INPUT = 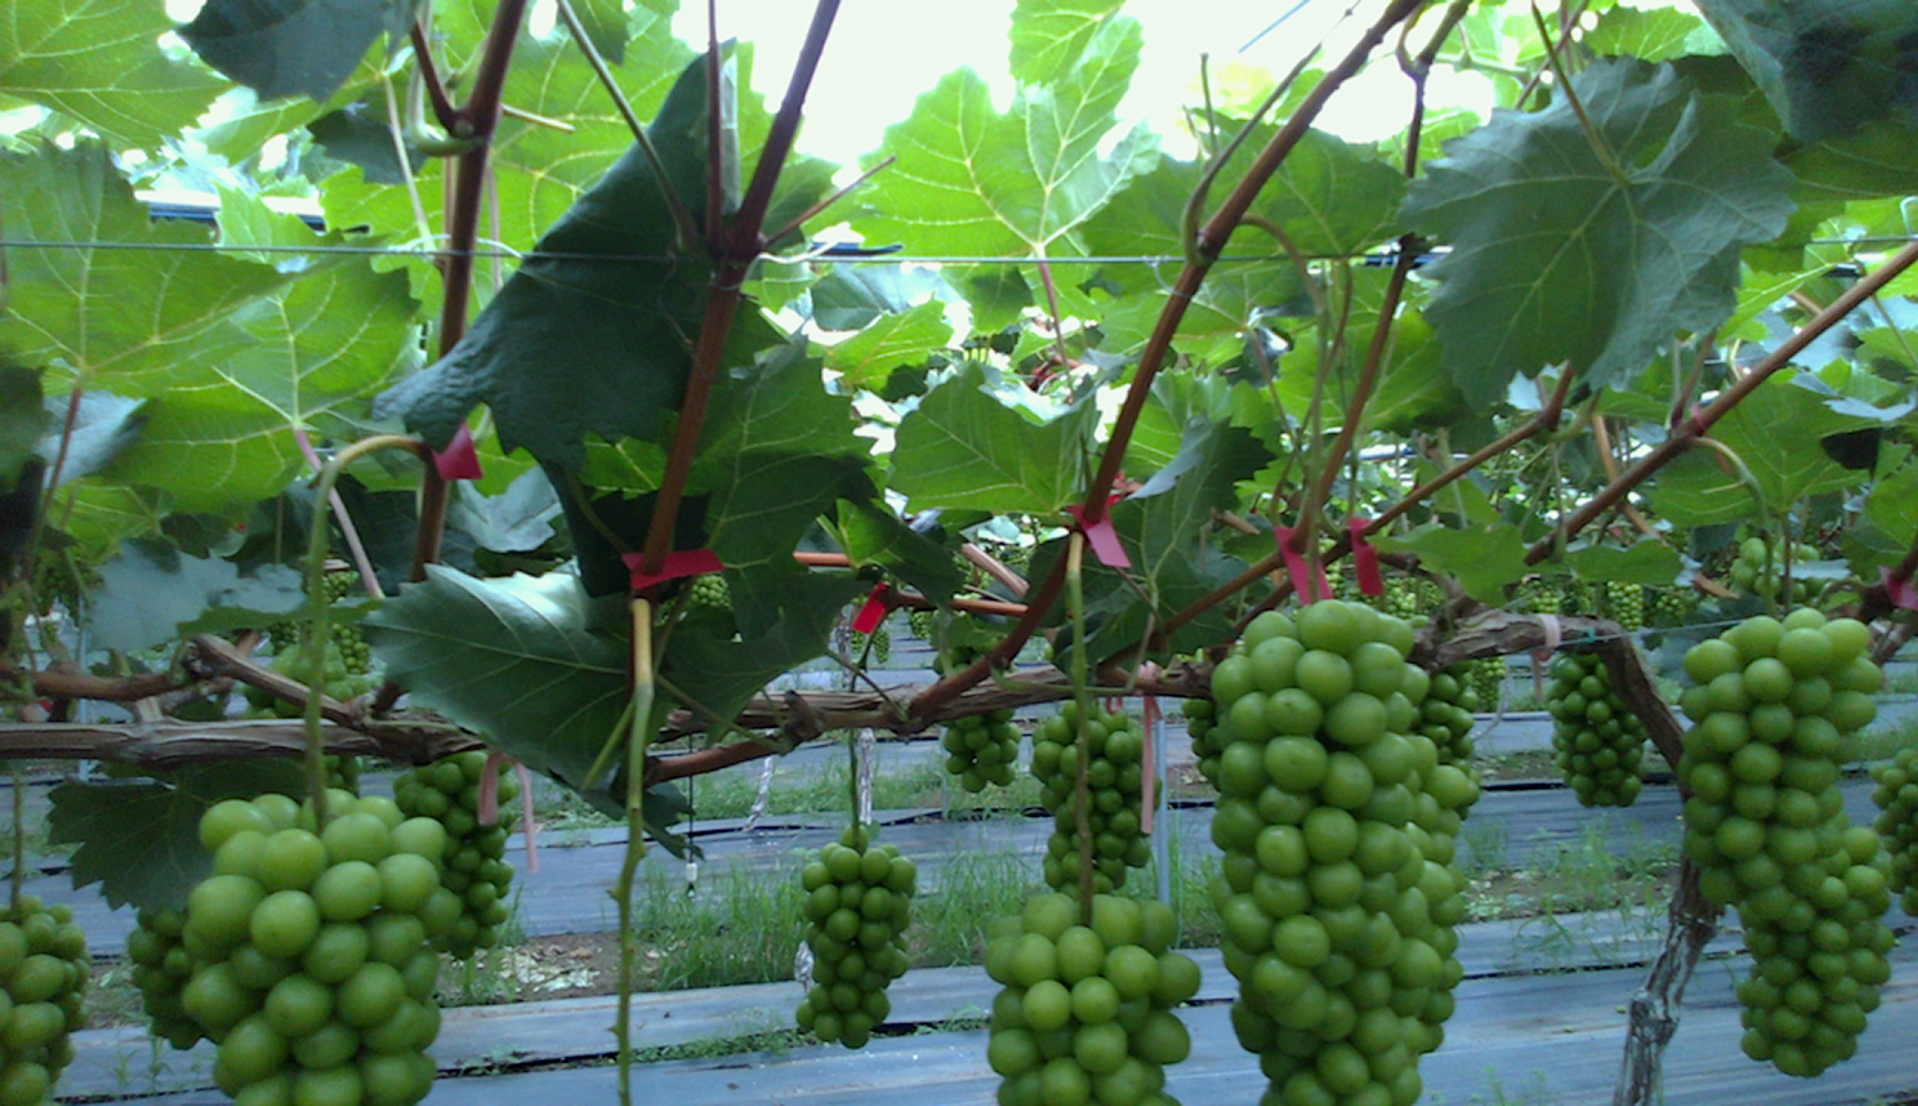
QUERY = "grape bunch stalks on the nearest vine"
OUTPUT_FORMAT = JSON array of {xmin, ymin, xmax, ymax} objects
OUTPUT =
[
  {"xmin": 582, "ymin": 601, "xmax": 655, "ymax": 1104},
  {"xmin": 1694, "ymin": 433, "xmax": 1778, "ymax": 616},
  {"xmin": 1068, "ymin": 531, "xmax": 1093, "ymax": 928},
  {"xmin": 1239, "ymin": 214, "xmax": 1328, "ymax": 605},
  {"xmin": 303, "ymin": 435, "xmax": 429, "ymax": 833}
]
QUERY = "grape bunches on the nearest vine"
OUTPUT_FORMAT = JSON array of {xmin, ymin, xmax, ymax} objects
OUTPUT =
[
  {"xmin": 979, "ymin": 891, "xmax": 1202, "ymax": 1103},
  {"xmin": 183, "ymin": 786, "xmax": 458, "ymax": 1104},
  {"xmin": 1674, "ymin": 607, "xmax": 1884, "ymax": 928},
  {"xmin": 1737, "ymin": 828, "xmax": 1895, "ymax": 1078},
  {"xmin": 1211, "ymin": 601, "xmax": 1431, "ymax": 1029},
  {"xmin": 1231, "ymin": 849, "xmax": 1455, "ymax": 1104}
]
